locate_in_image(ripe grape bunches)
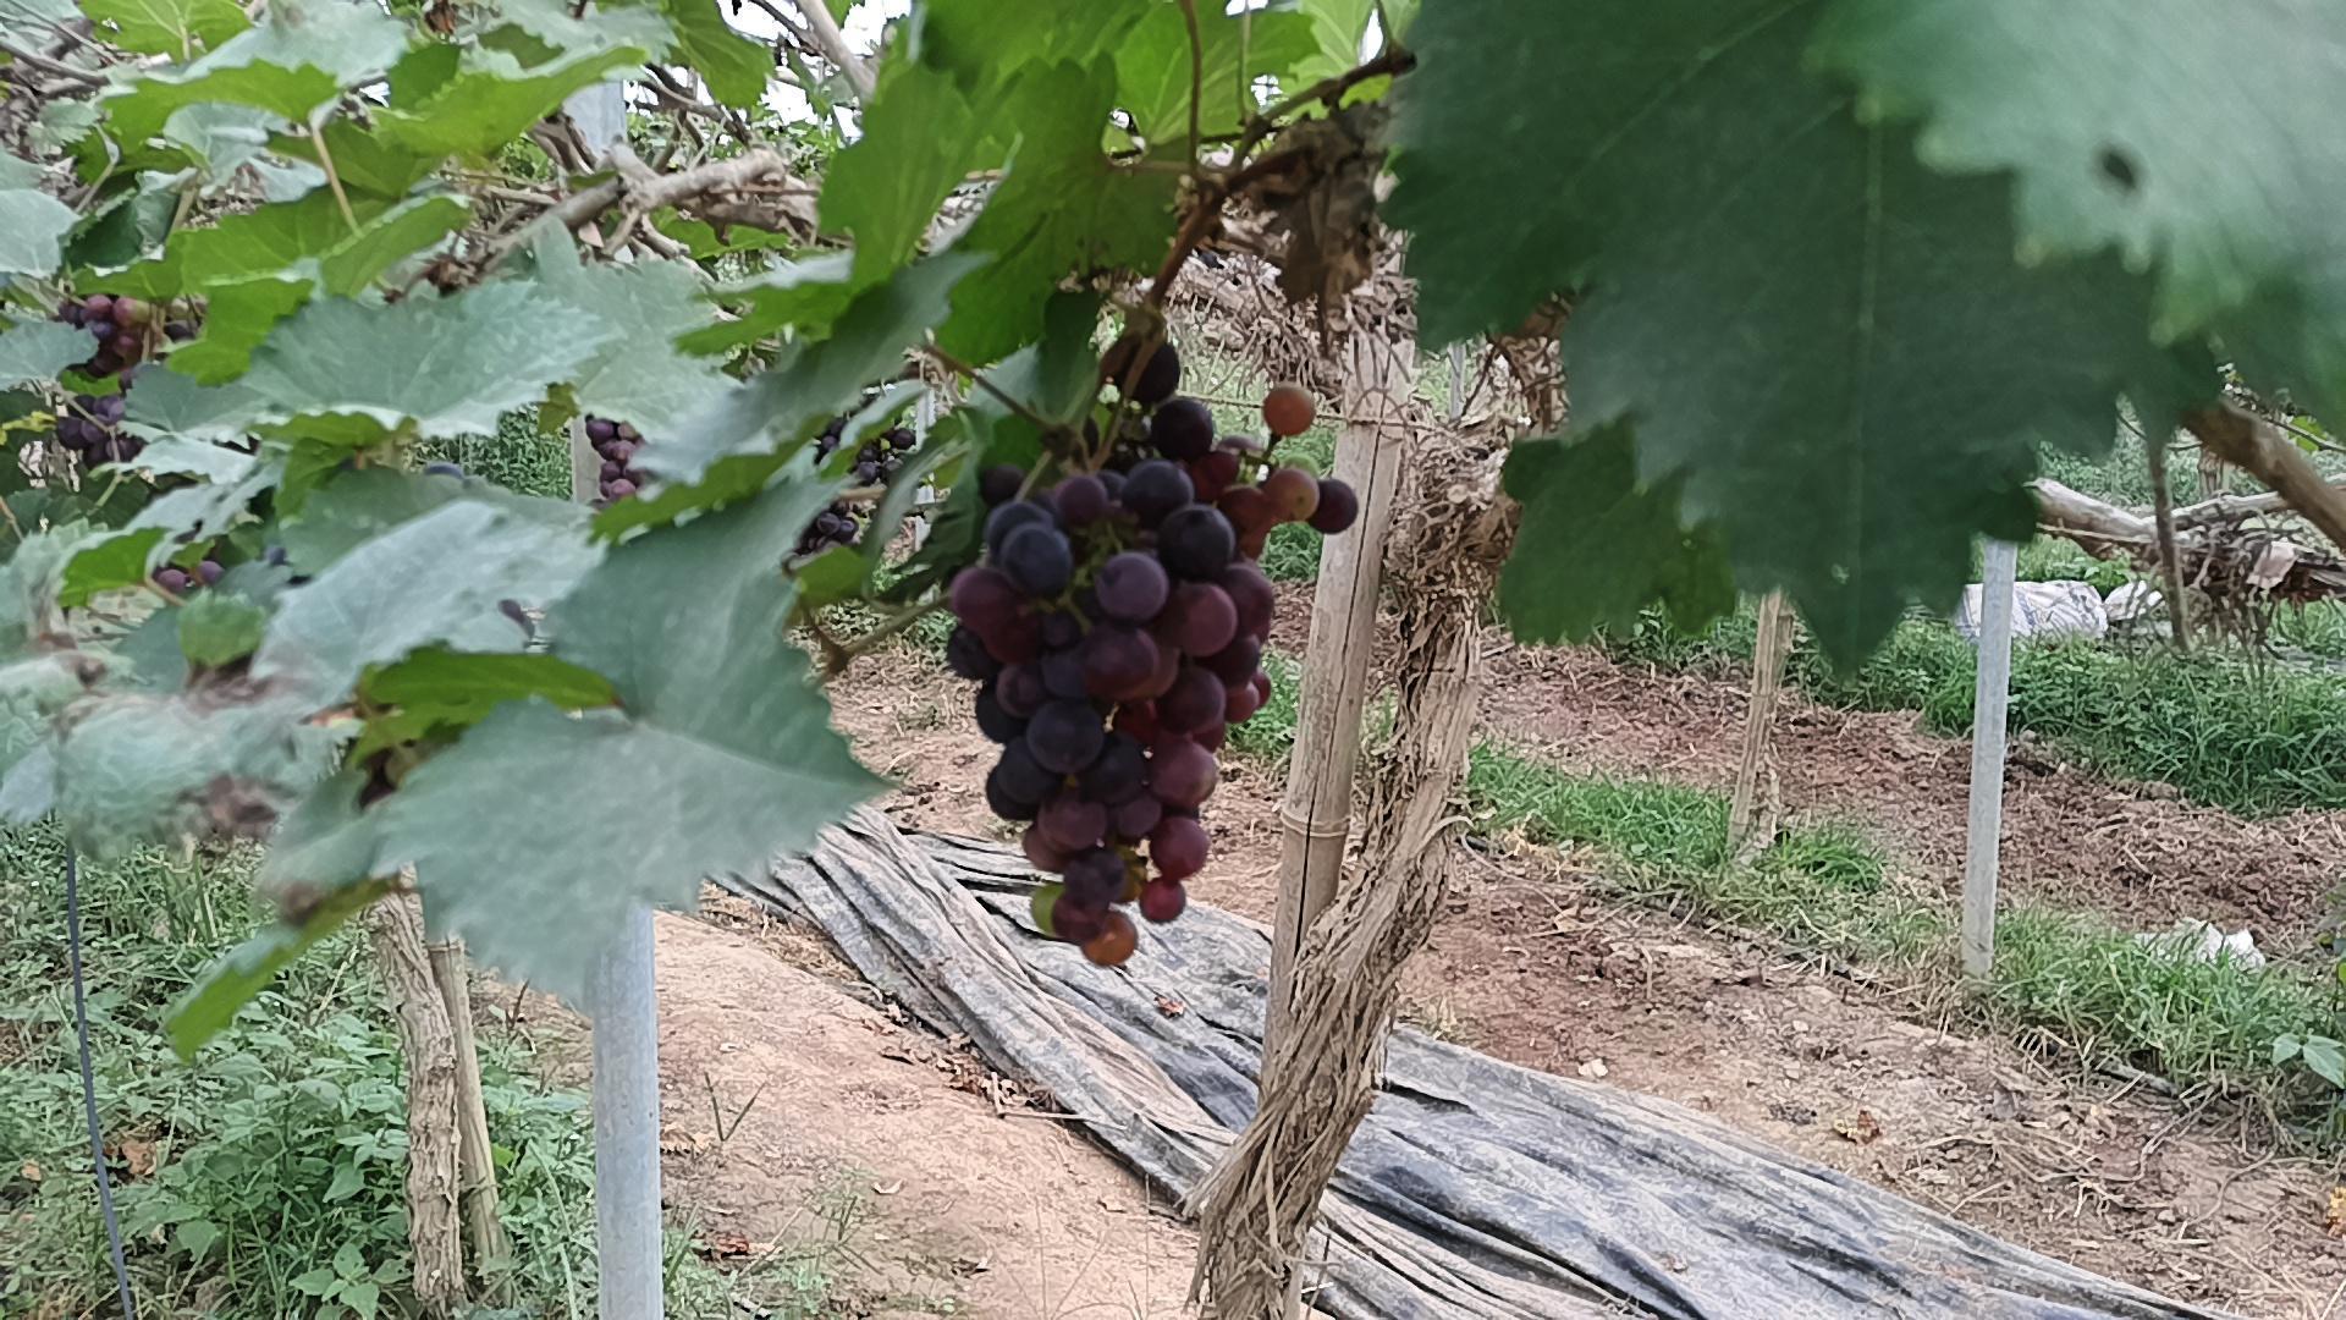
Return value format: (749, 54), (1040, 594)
(583, 416), (648, 508)
(54, 293), (200, 467)
(794, 418), (916, 556)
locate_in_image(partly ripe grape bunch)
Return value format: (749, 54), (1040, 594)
(947, 341), (1355, 964)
